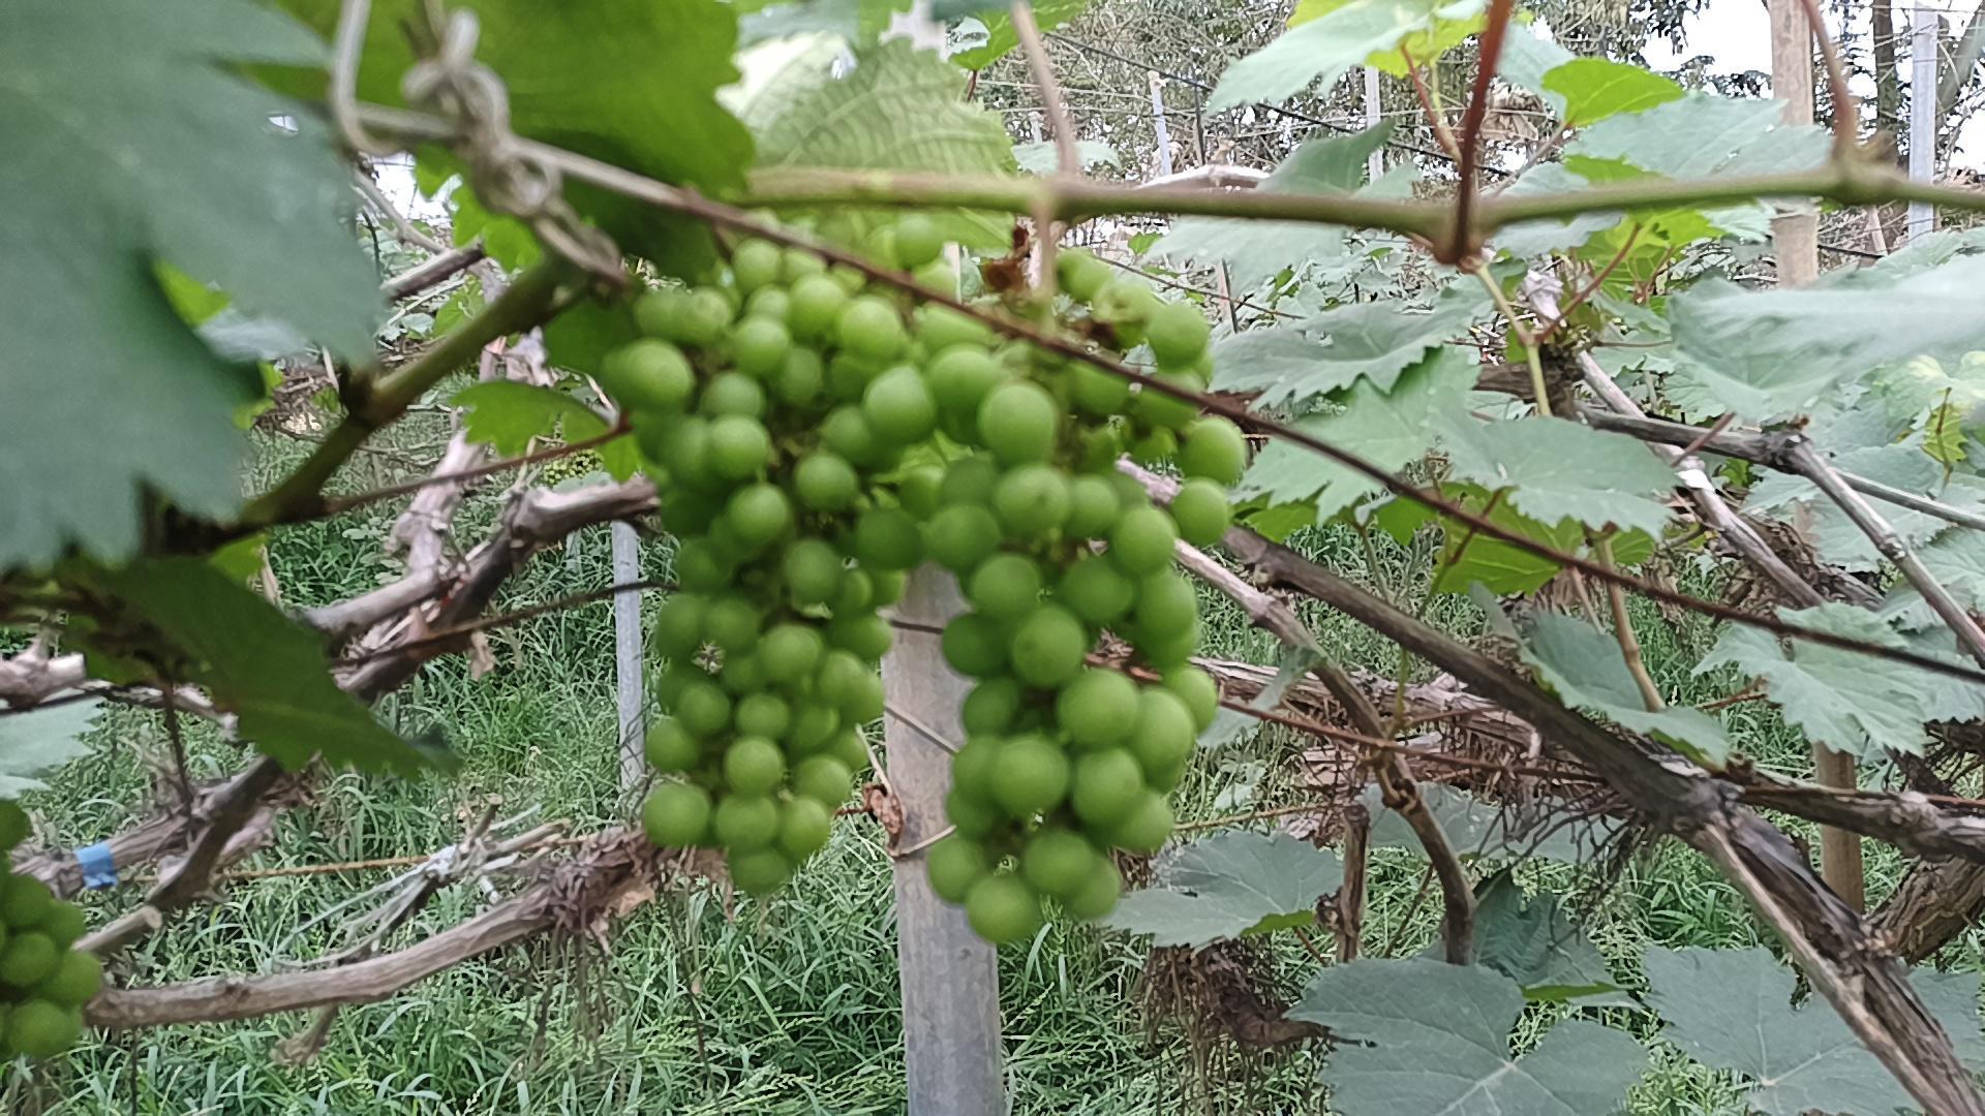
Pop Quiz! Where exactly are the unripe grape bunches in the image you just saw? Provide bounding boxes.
[923,248,1245,942]
[0,799,102,1062]
[600,204,960,894]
